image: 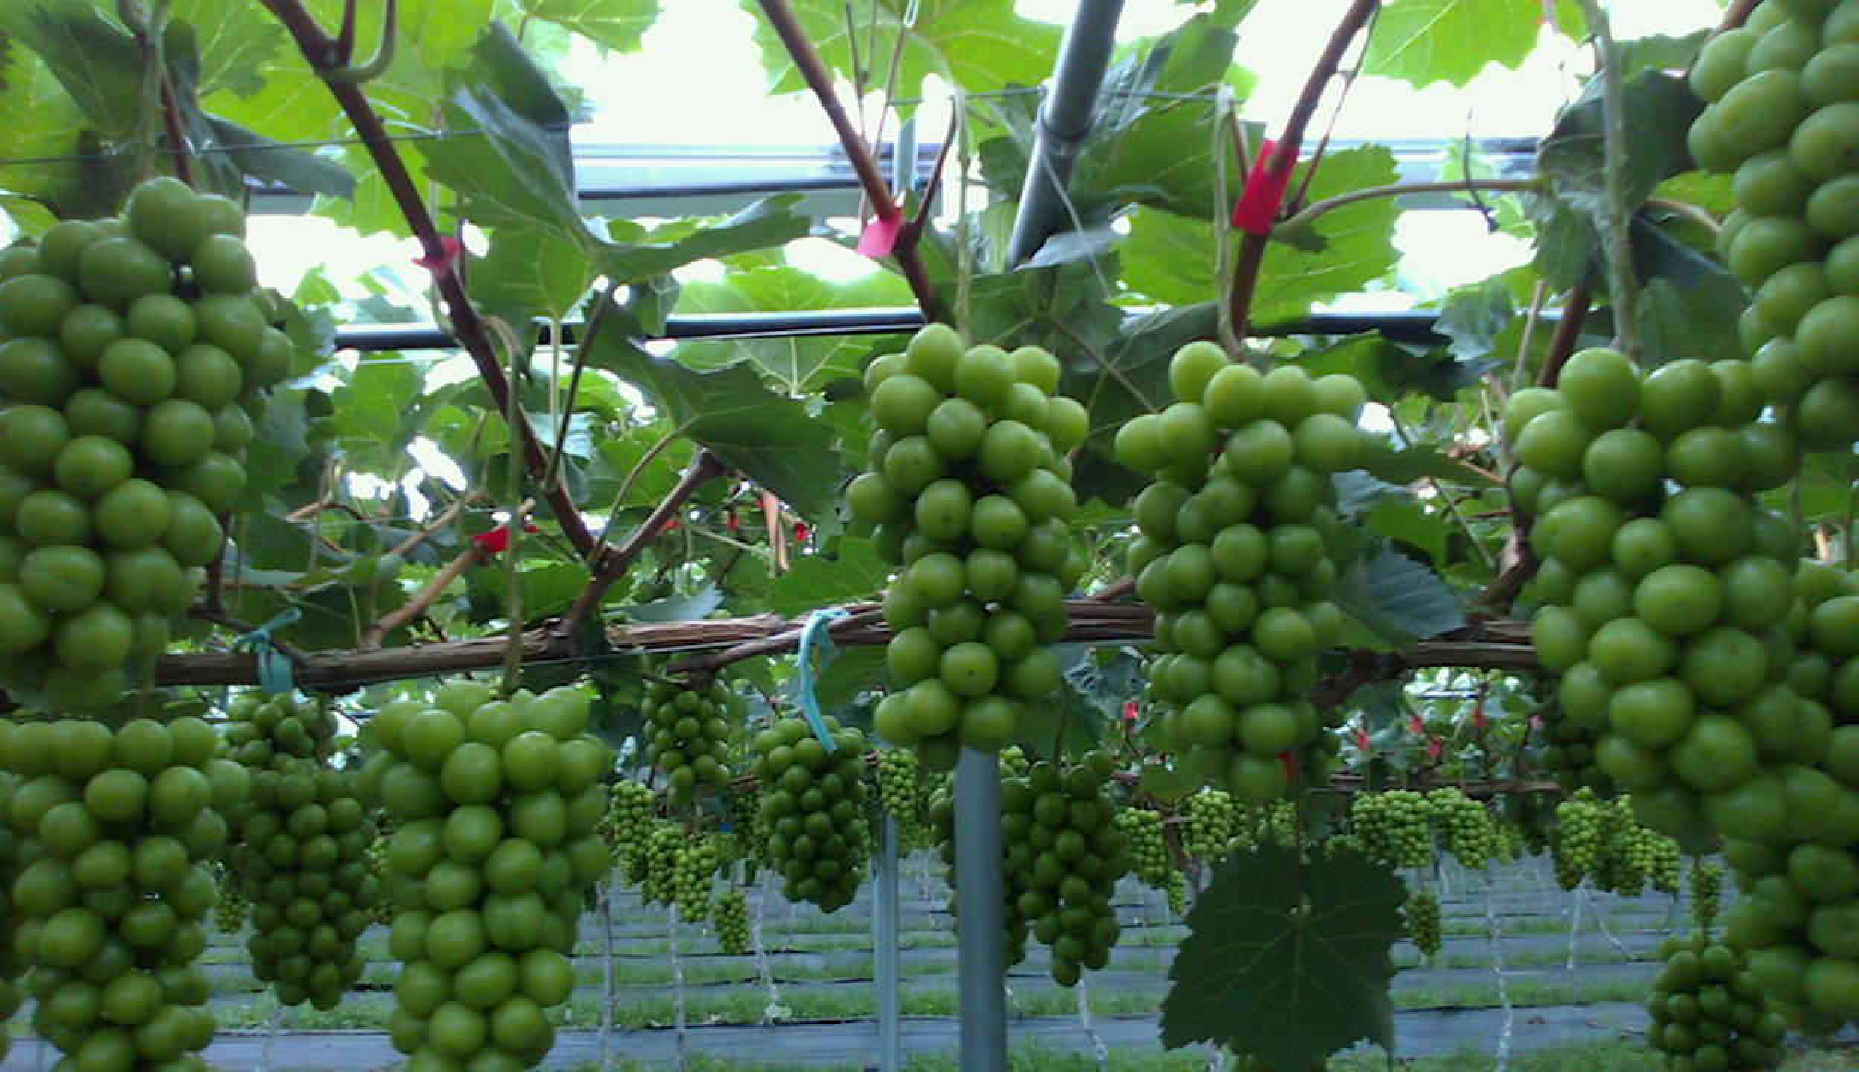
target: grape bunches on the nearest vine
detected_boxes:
[845,323,1089,774]
[1,176,296,716]
[1506,345,1856,1039]
[1114,339,1366,805]
[0,716,249,1071]
[355,680,617,1069]
[1685,1,1858,448]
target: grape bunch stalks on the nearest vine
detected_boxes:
[137,663,156,721]
[1576,0,1642,369]
[1789,472,1802,530]
[481,313,533,701]
[950,85,971,350]
[133,3,174,183]
[1211,88,1244,363]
